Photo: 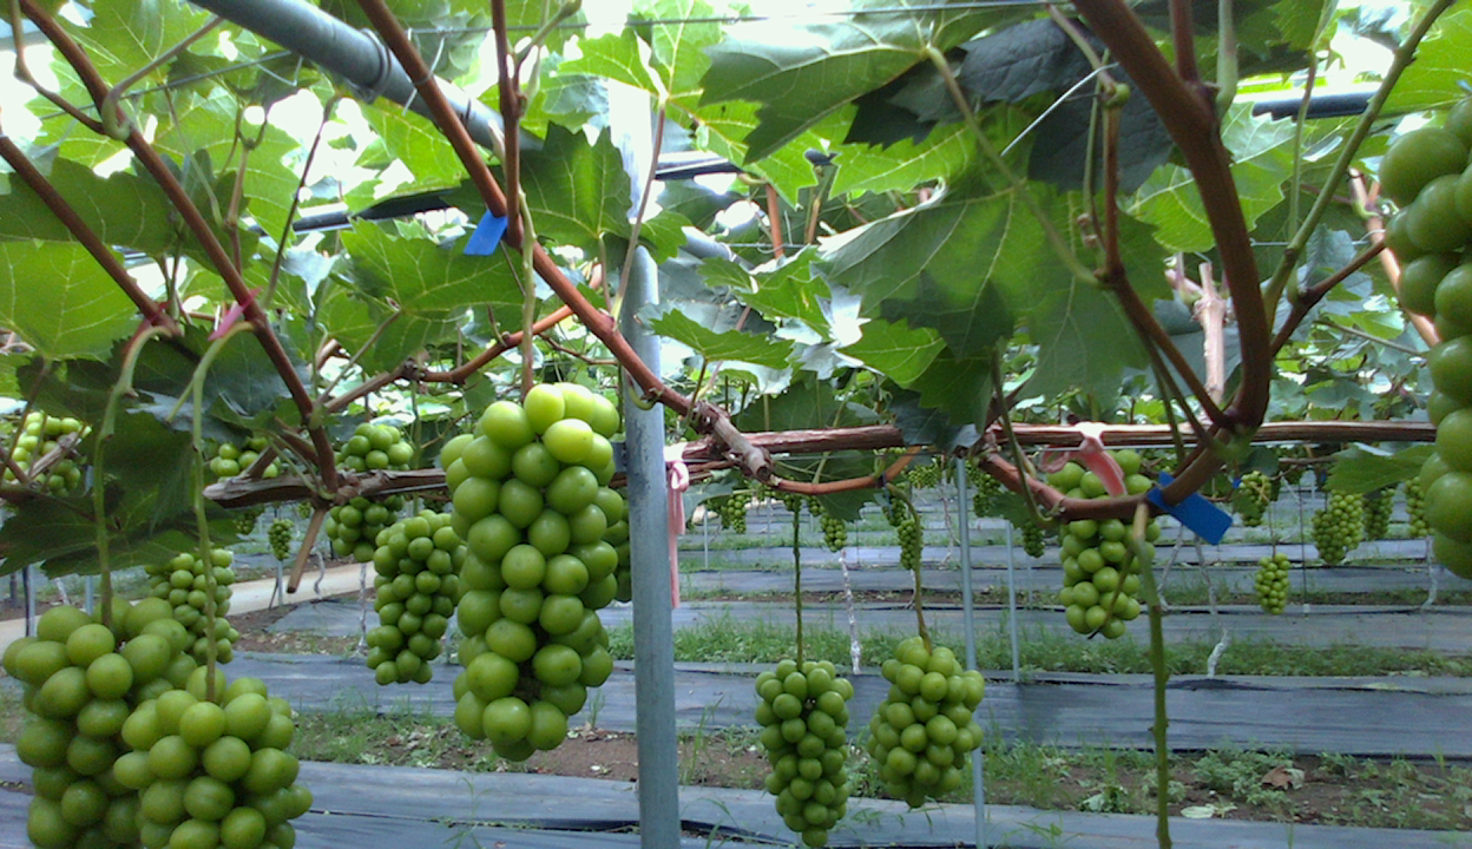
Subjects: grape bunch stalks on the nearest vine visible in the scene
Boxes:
[520,196,534,395]
[166,328,234,700]
[91,330,153,626]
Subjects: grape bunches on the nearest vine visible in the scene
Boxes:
[4,597,197,848]
[111,666,311,848]
[440,382,624,761]
[1376,98,1470,578]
